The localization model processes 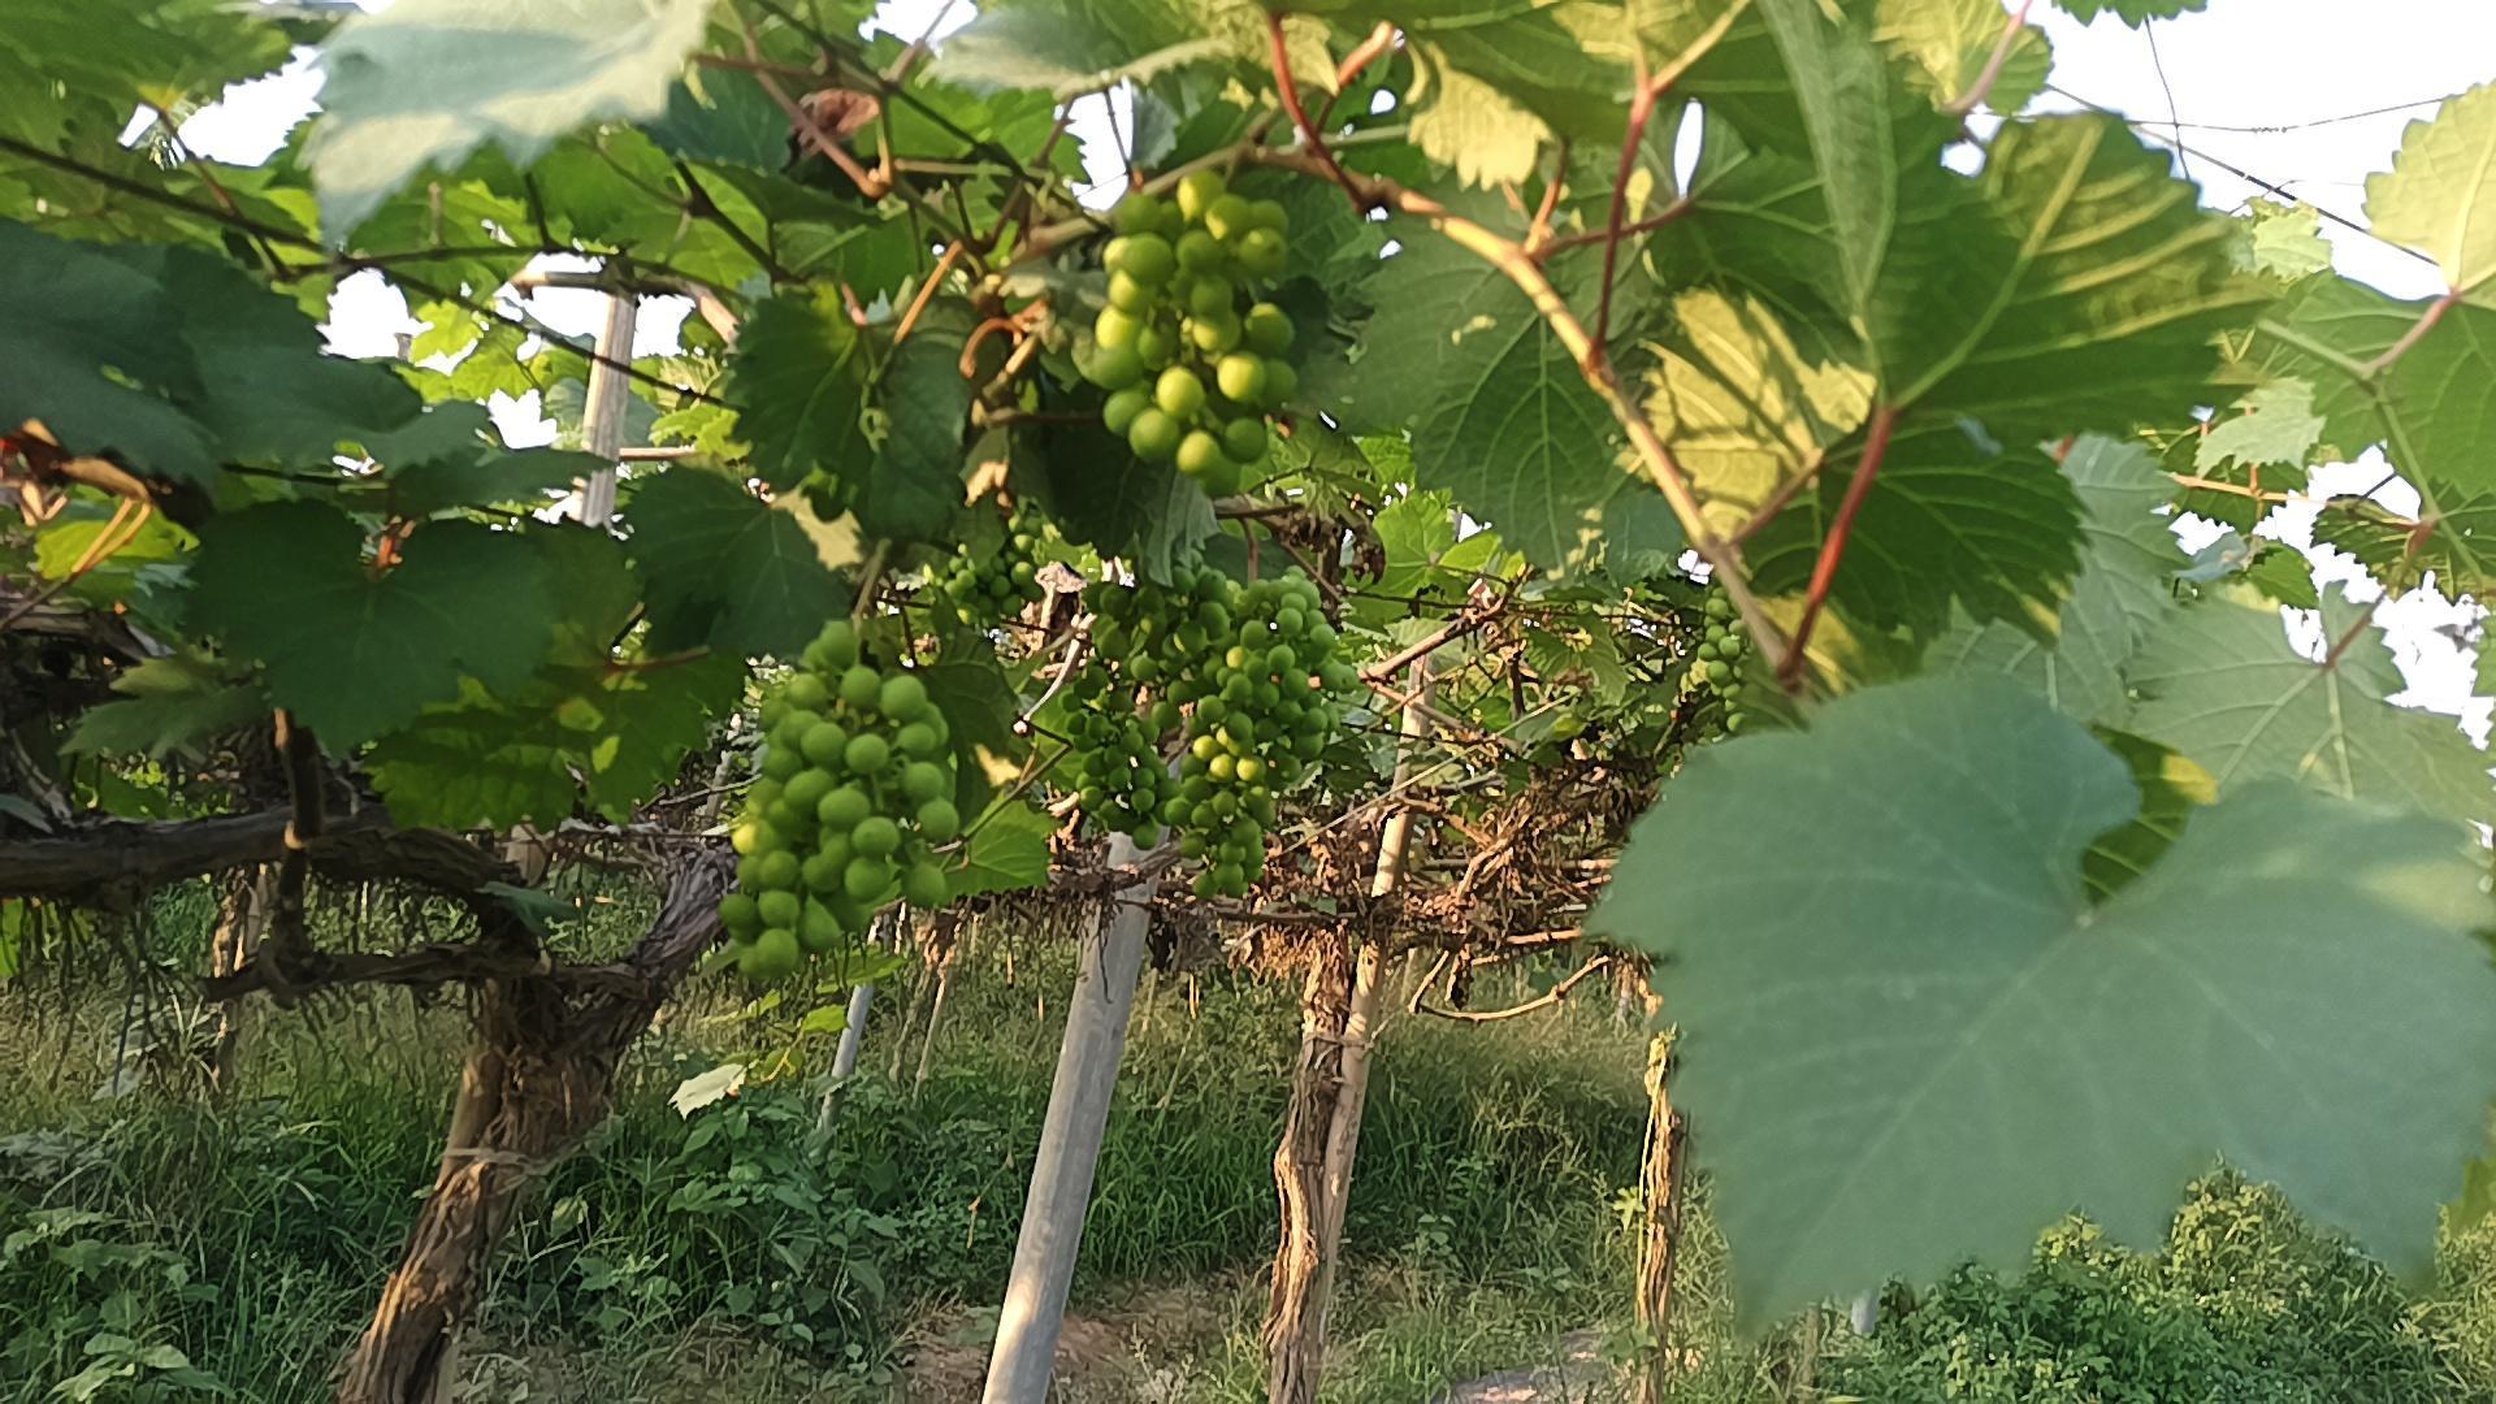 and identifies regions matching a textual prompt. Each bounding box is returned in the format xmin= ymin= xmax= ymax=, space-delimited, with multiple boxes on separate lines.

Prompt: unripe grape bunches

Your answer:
xmin=1163 ymin=567 xmax=1358 ymax=897
xmin=1695 ymin=569 xmax=1751 ymax=731
xmin=1084 ymin=174 xmax=1296 ymax=480
xmin=941 ymin=504 xmax=1050 ymax=632
xmin=720 ymin=623 xmax=958 ymax=976
xmin=1059 ymin=546 xmax=1231 ymax=855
